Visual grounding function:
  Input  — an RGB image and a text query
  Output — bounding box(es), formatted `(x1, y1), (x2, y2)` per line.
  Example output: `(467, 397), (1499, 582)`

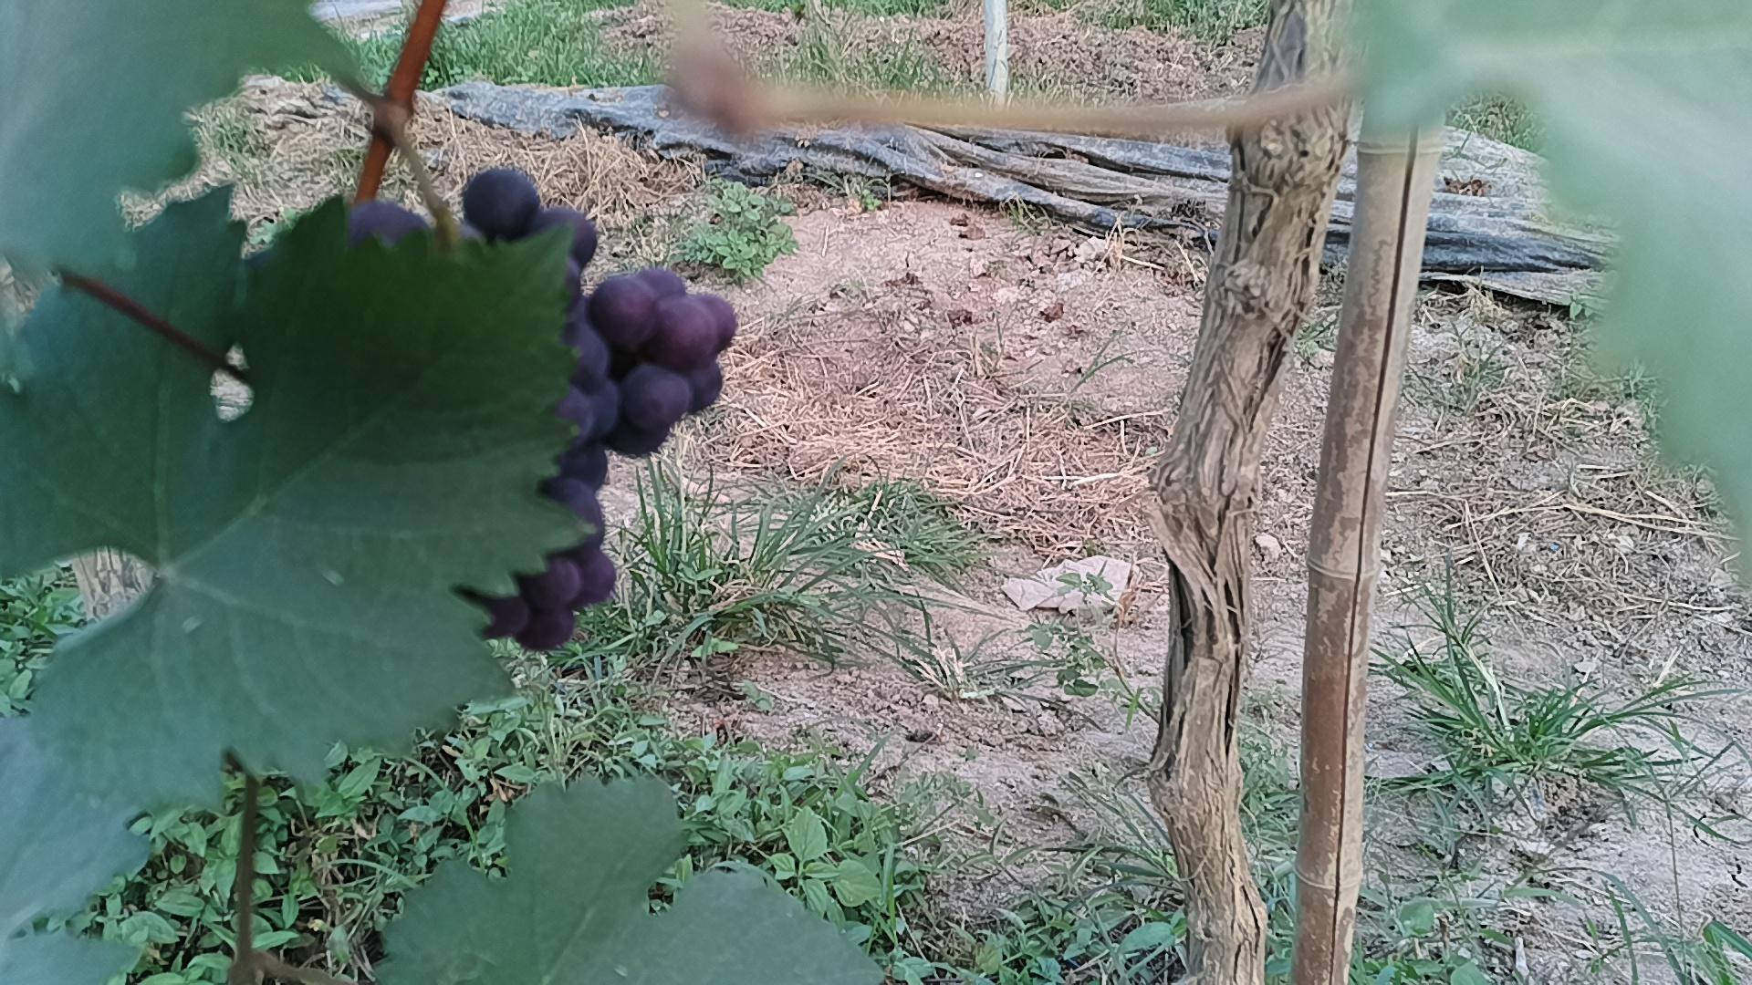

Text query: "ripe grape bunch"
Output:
(349, 169), (735, 649)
